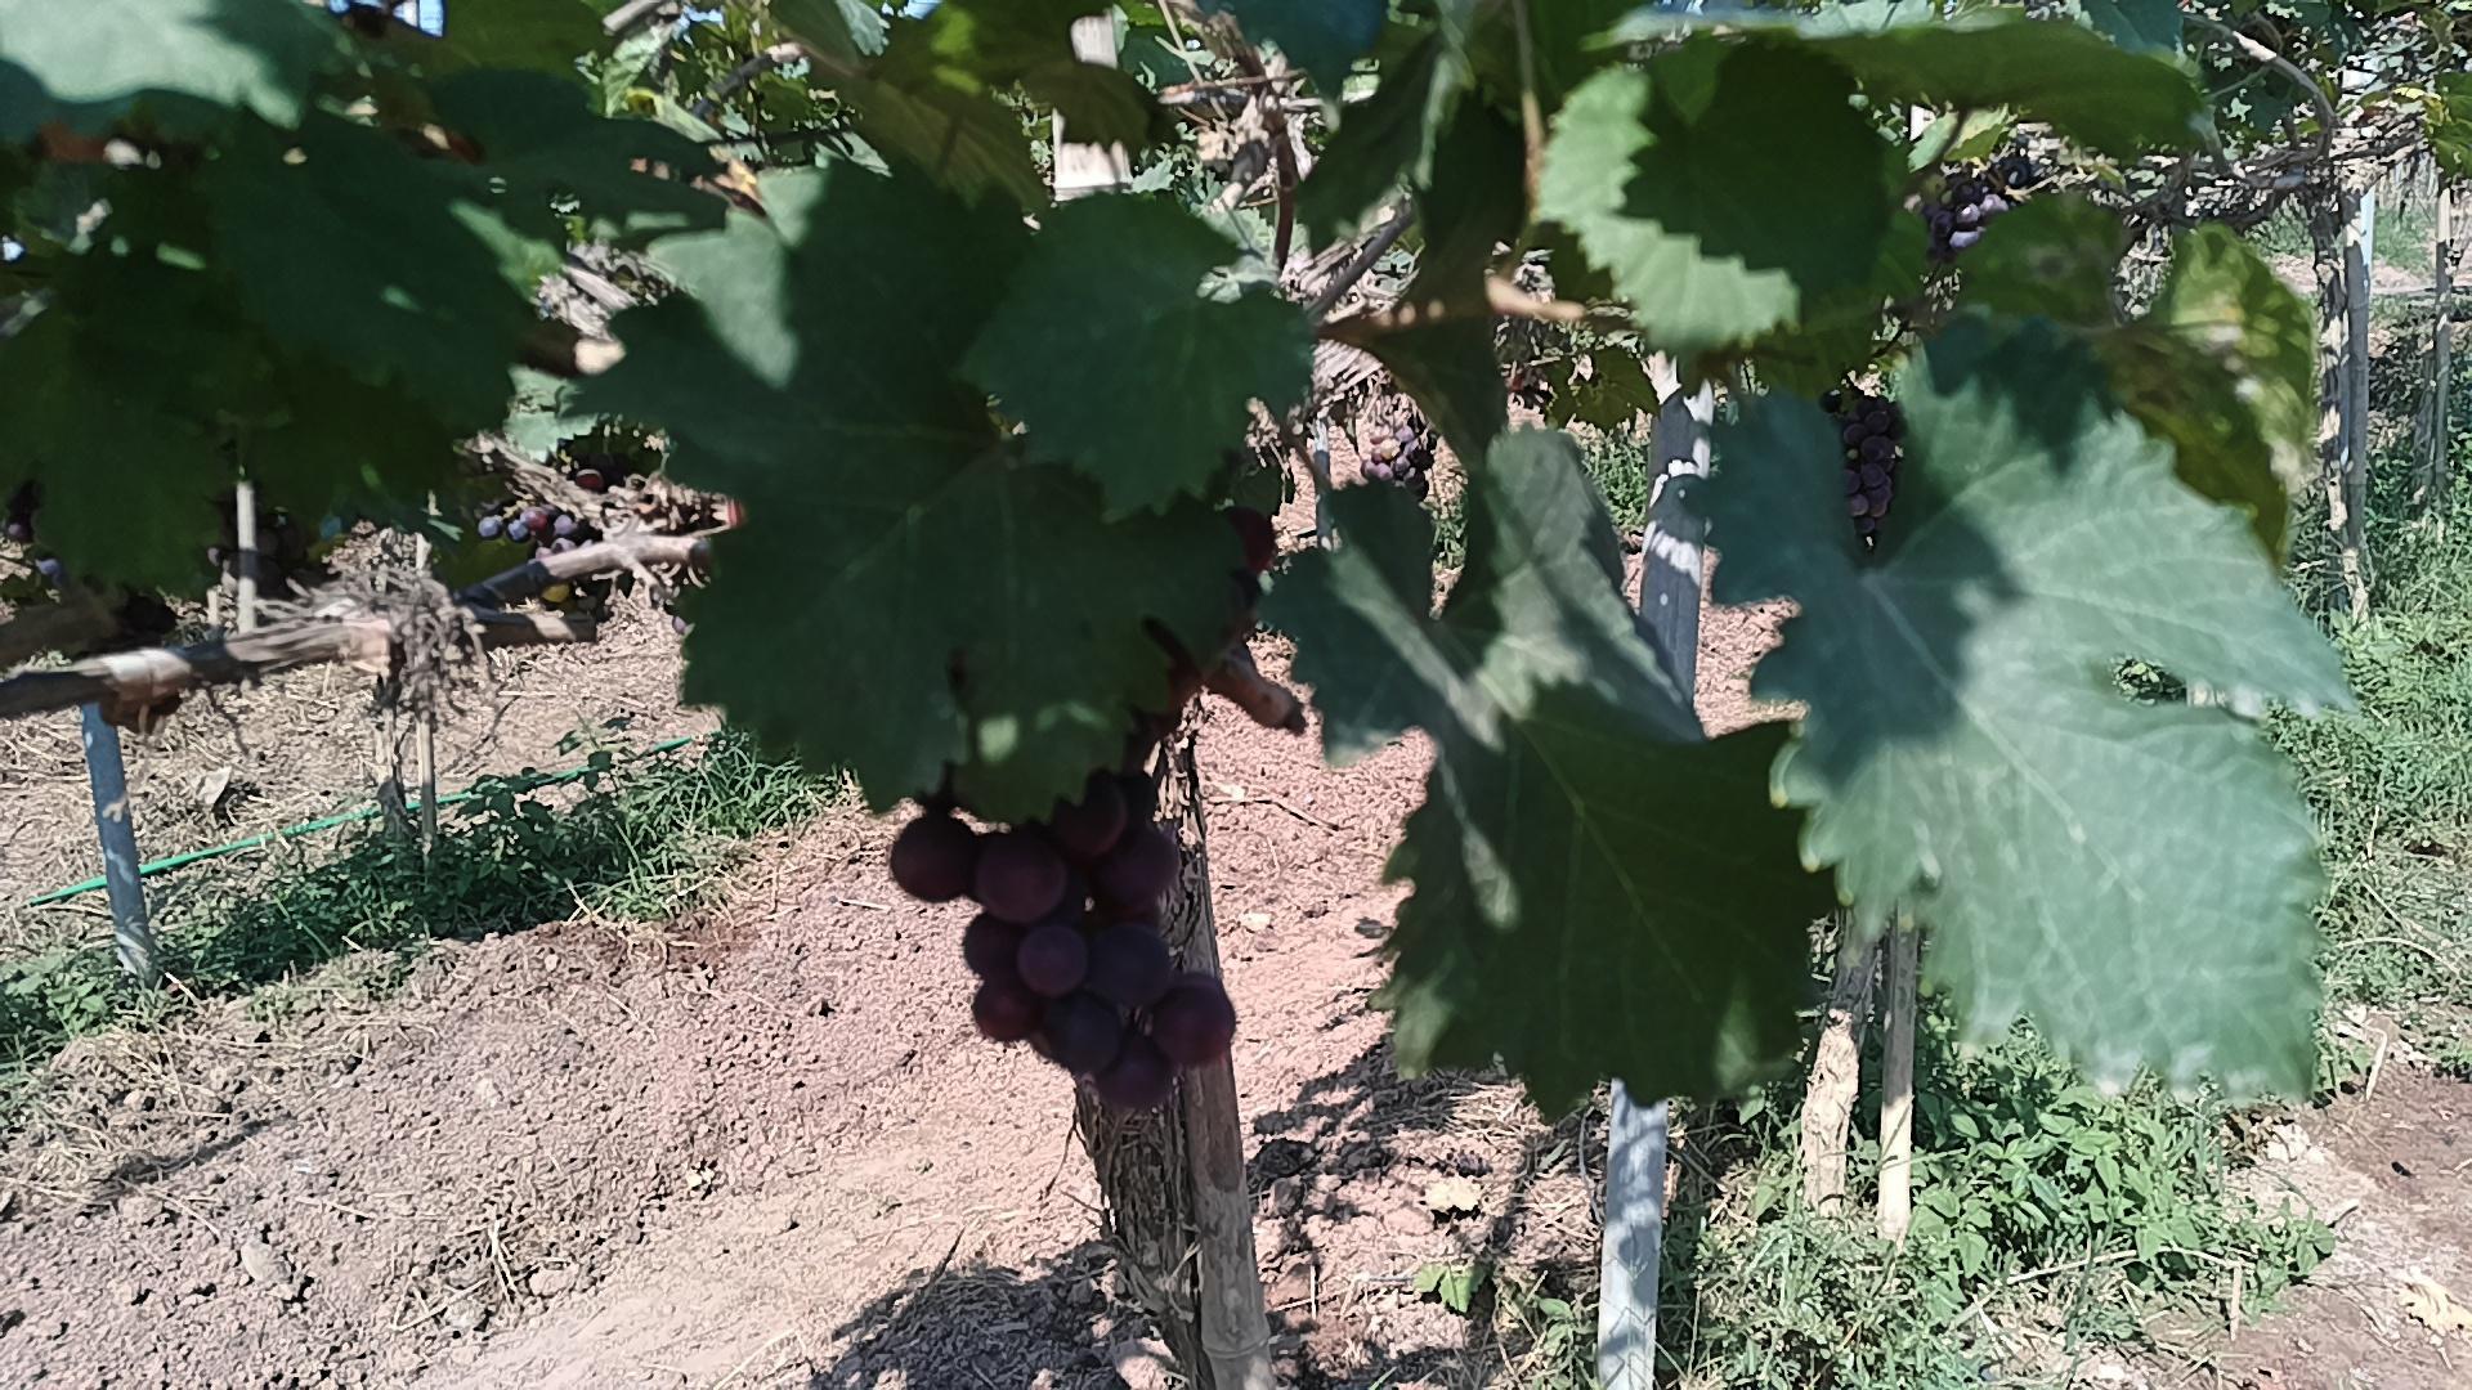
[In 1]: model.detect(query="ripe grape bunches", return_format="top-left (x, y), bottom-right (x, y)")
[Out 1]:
top-left (1819, 384), bottom-right (1904, 552)
top-left (1921, 152), bottom-right (2043, 264)
top-left (891, 772), bottom-right (1235, 1109)
top-left (475, 466), bottom-right (617, 620)
top-left (212, 493), bottom-right (330, 600)
top-left (0, 480), bottom-right (200, 732)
